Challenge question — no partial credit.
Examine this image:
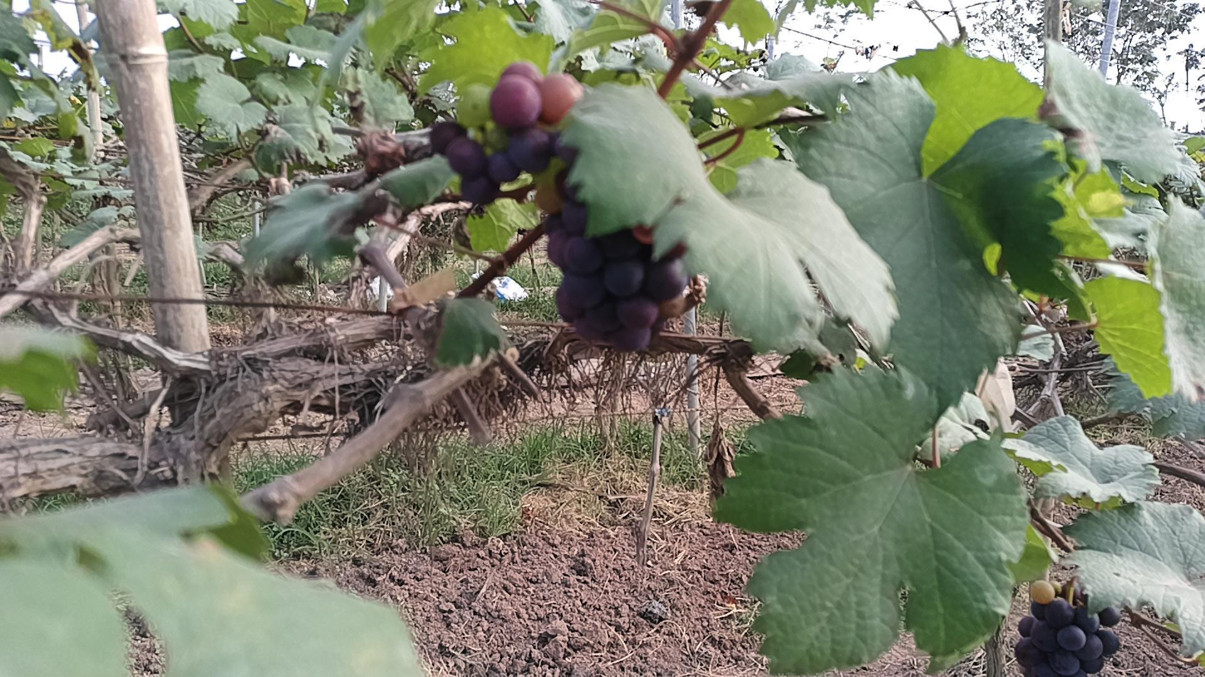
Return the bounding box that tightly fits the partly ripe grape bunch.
[1014,580,1120,676]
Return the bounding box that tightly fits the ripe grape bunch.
[429,62,704,351]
